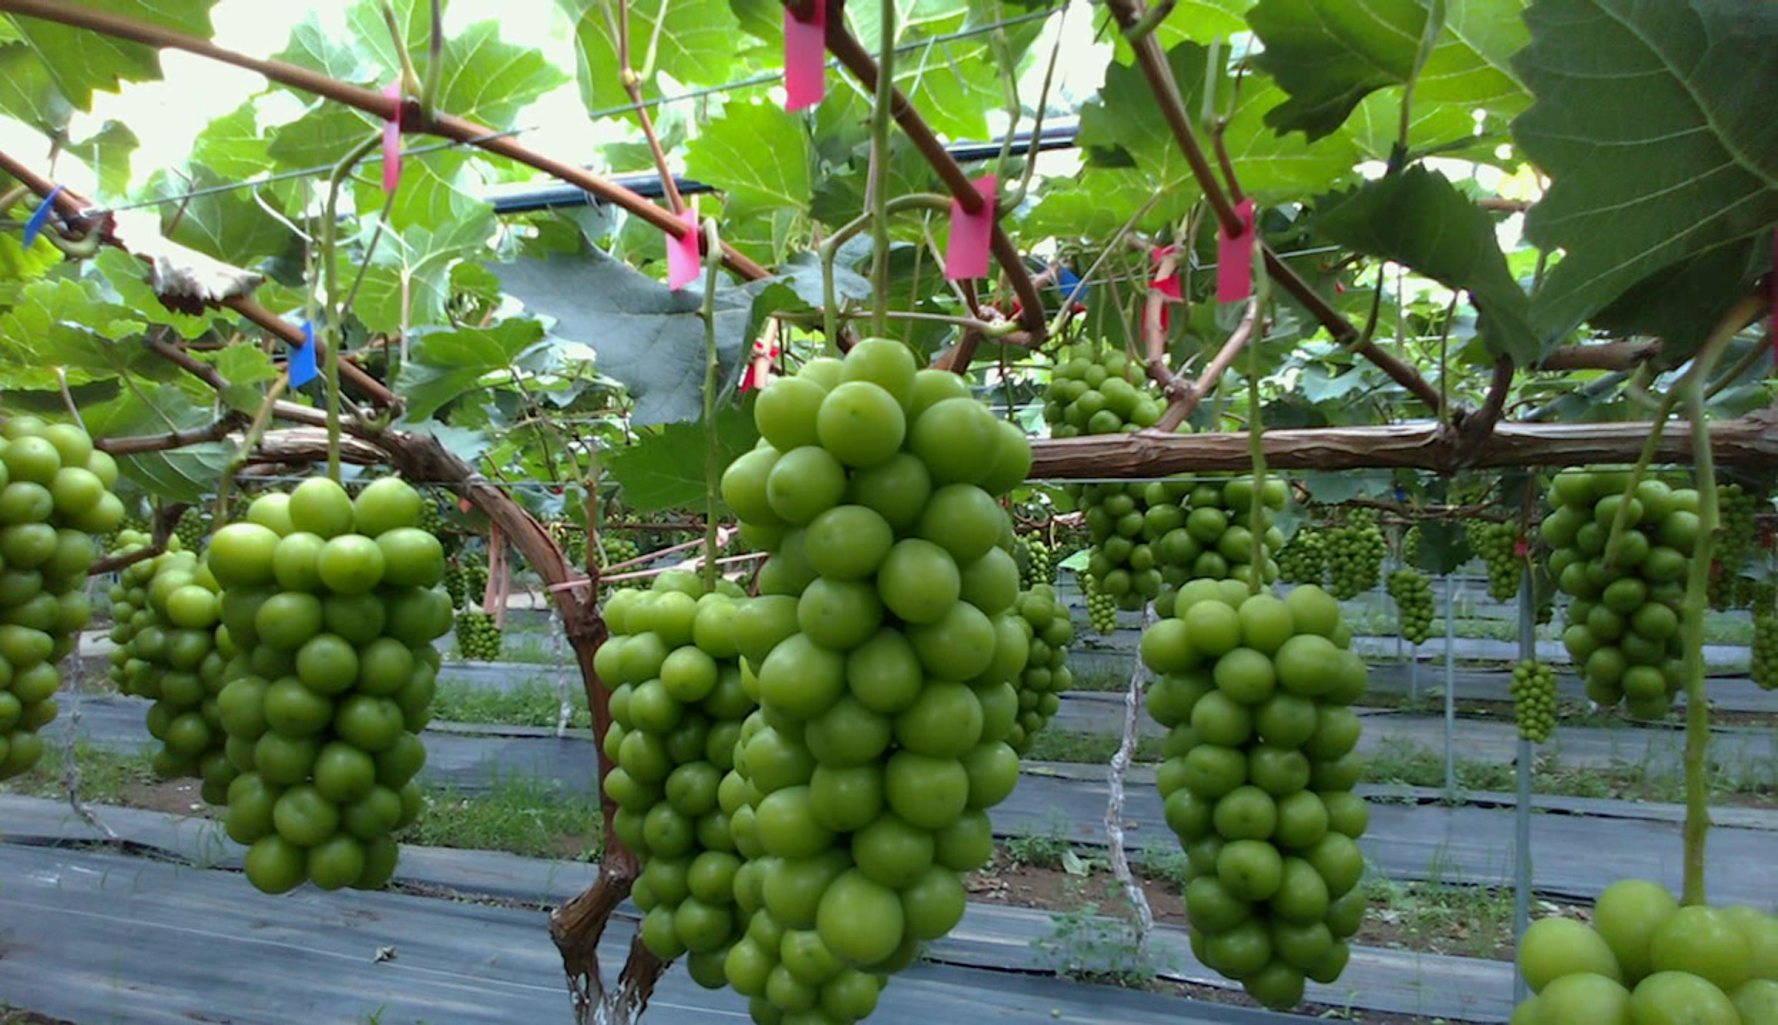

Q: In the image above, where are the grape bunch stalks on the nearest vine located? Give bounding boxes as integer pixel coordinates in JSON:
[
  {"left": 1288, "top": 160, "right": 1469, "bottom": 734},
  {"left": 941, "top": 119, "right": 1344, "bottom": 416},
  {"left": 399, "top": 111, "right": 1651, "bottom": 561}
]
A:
[
  {"left": 319, "top": 125, "right": 383, "bottom": 484},
  {"left": 815, "top": 192, "right": 953, "bottom": 356},
  {"left": 704, "top": 221, "right": 724, "bottom": 592},
  {"left": 1247, "top": 242, "right": 1269, "bottom": 595},
  {"left": 869, "top": 1, "right": 895, "bottom": 339},
  {"left": 1680, "top": 282, "right": 1777, "bottom": 907}
]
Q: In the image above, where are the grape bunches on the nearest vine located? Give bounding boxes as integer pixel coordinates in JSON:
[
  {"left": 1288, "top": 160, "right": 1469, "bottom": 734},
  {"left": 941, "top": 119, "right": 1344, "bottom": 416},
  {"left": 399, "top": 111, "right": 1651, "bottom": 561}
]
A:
[
  {"left": 202, "top": 477, "right": 454, "bottom": 894},
  {"left": 1512, "top": 878, "right": 1777, "bottom": 1024},
  {"left": 1138, "top": 578, "right": 1371, "bottom": 1011},
  {"left": 717, "top": 336, "right": 1033, "bottom": 1024},
  {"left": 591, "top": 568, "right": 761, "bottom": 988},
  {"left": 0, "top": 417, "right": 124, "bottom": 782},
  {"left": 130, "top": 555, "right": 239, "bottom": 806}
]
